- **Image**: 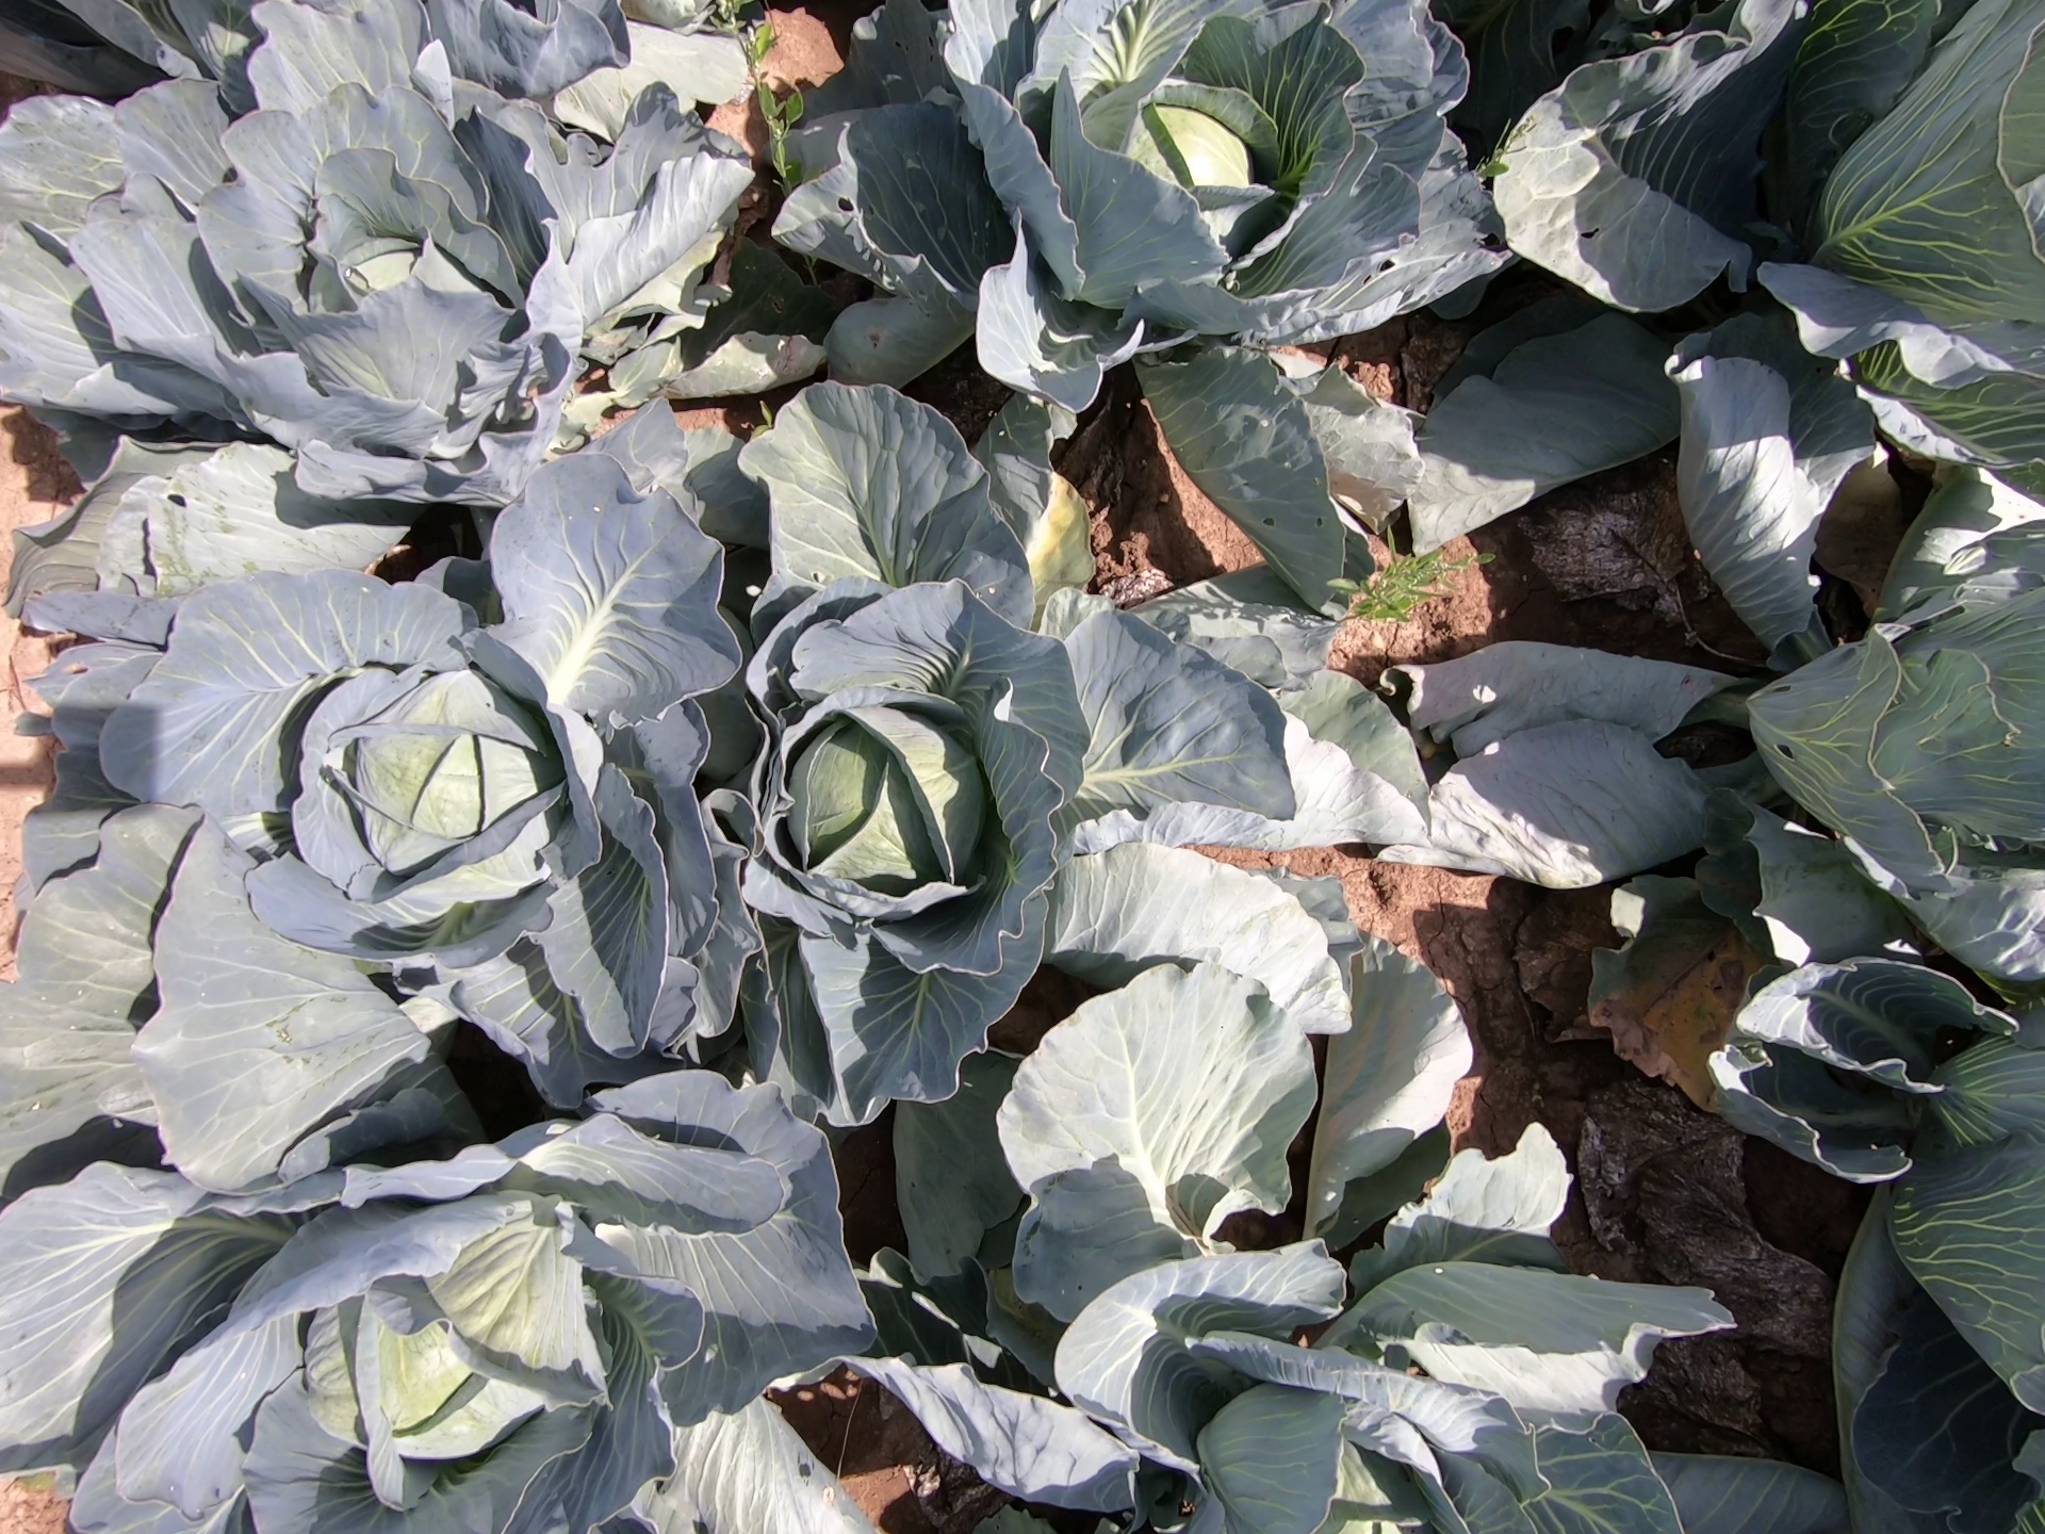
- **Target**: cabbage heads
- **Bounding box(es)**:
[1067,82,1259,278]
[783,709,980,909]
[1209,1373,1443,1532]
[349,674,568,905]
[311,238,496,404]
[302,1218,582,1459]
